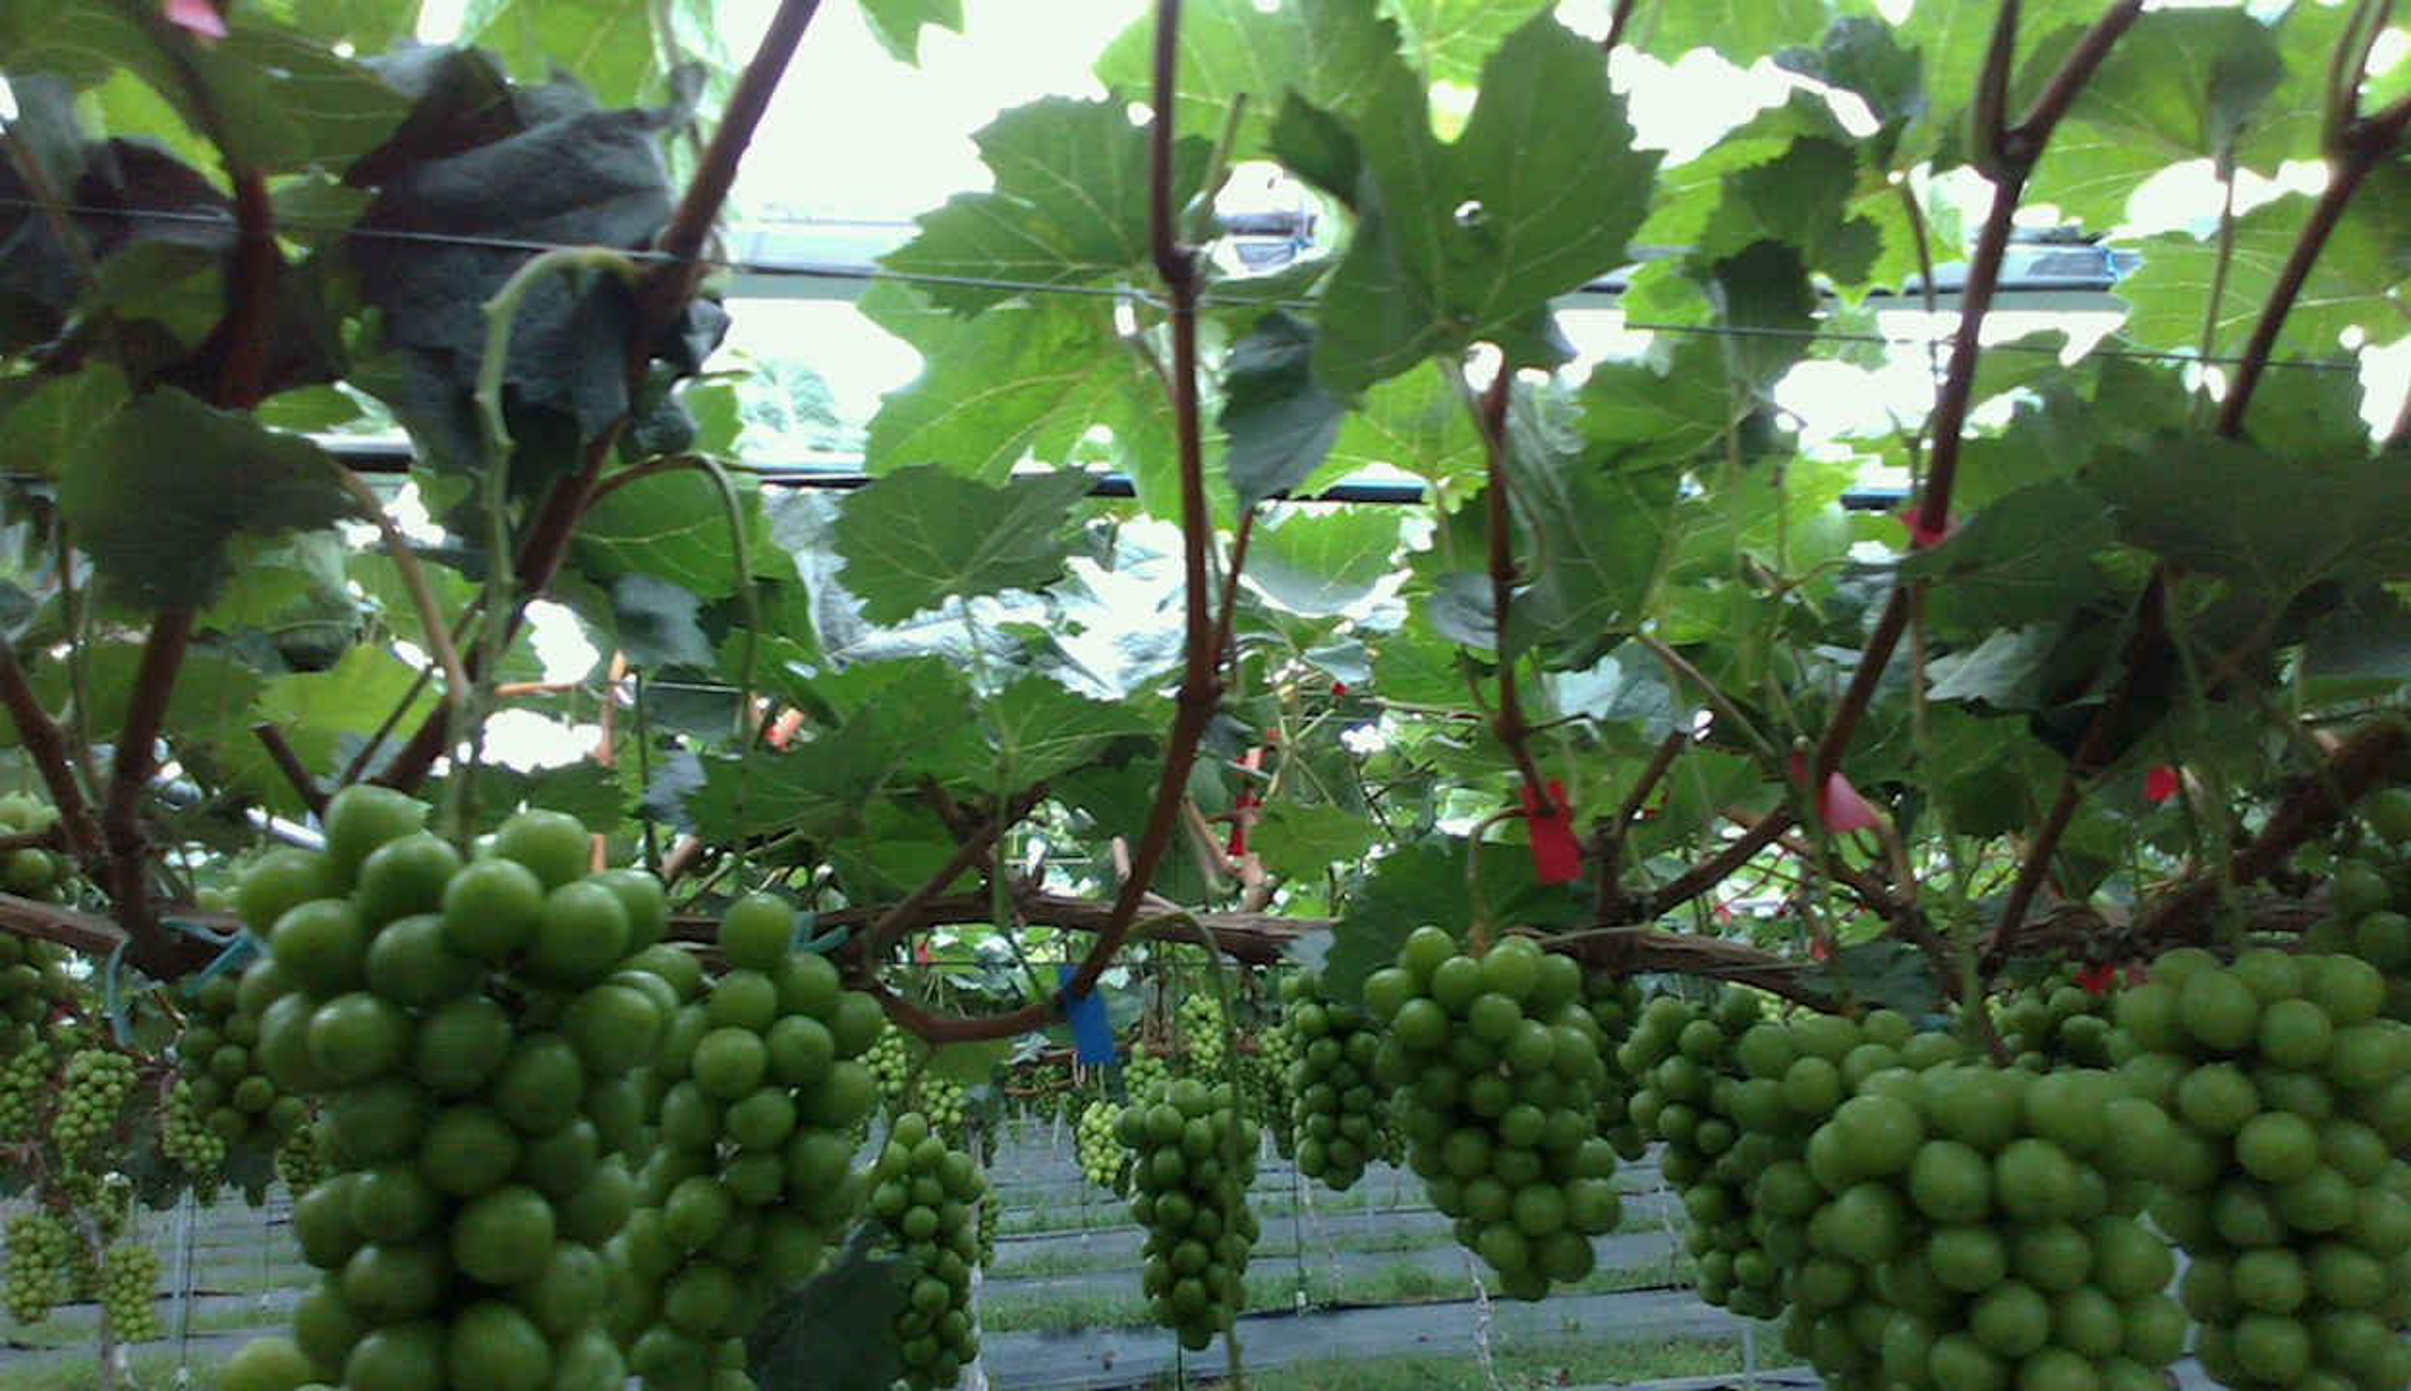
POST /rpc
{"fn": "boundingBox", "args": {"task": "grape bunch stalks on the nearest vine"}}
[2160,554,2251,956]
[583,454,759,902]
[1901,585,1980,1068]
[1464,806,1524,960]
[450,245,639,866]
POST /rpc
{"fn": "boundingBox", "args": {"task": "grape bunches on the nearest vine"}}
[583,893,883,1389]
[1806,1055,2187,1389]
[236,782,701,1389]
[2106,949,2407,1389]
[1362,925,1621,1304]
